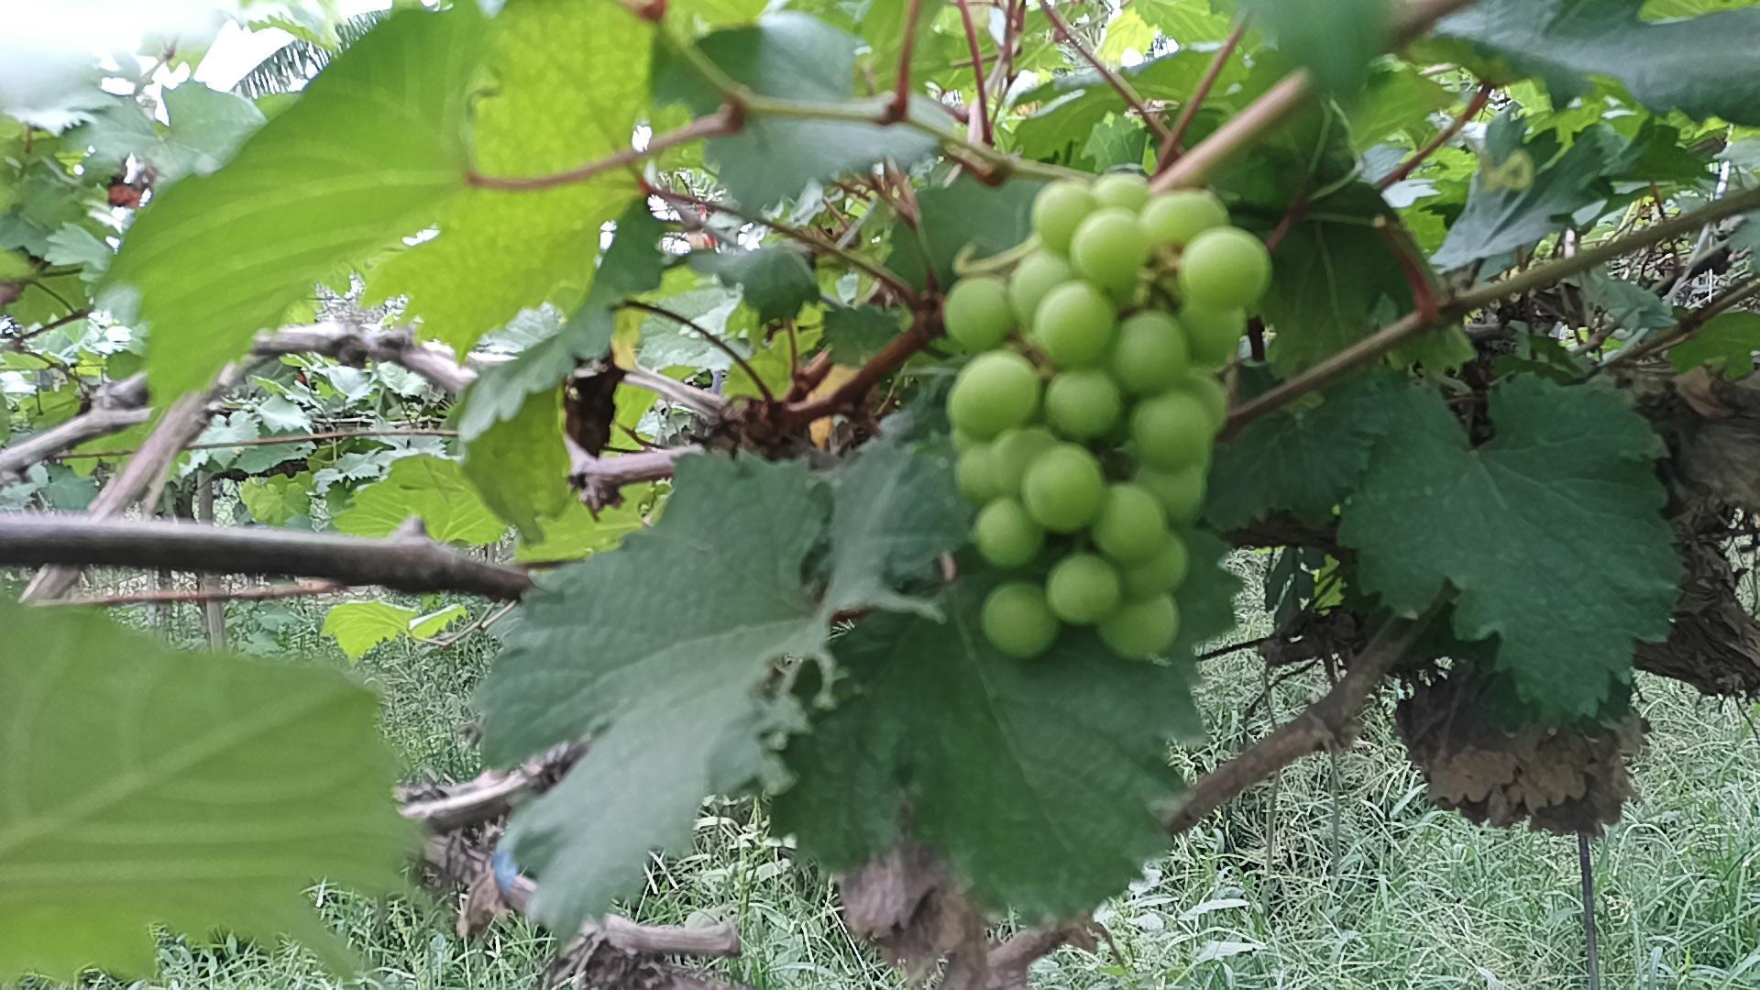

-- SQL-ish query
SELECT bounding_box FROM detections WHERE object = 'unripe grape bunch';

[945,172,1270,659]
